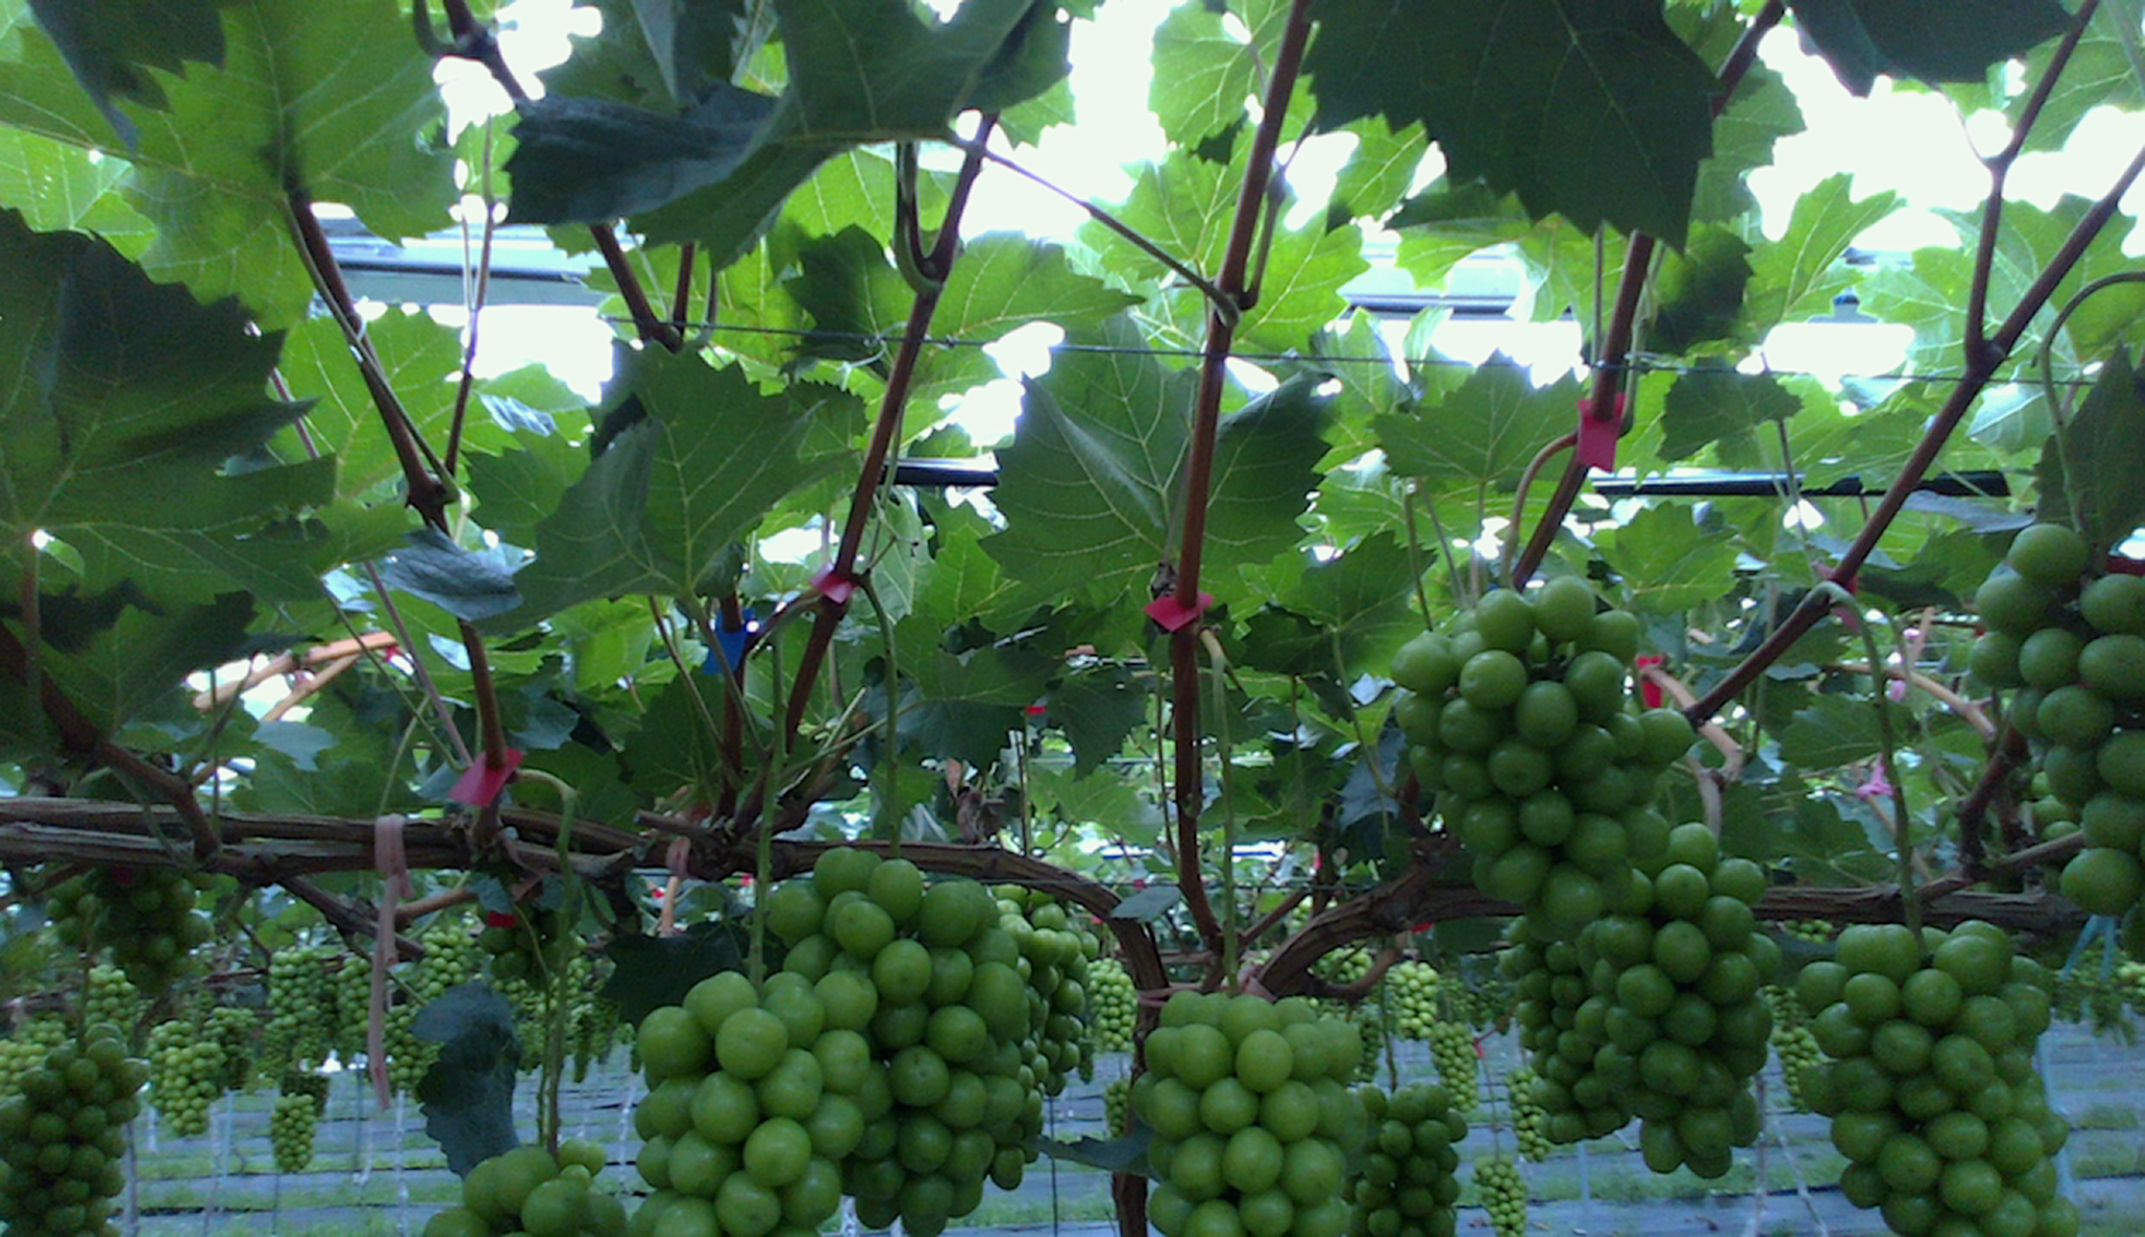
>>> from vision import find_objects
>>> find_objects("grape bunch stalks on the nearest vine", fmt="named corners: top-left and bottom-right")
top-left (2038, 270), bottom-right (2143, 534)
top-left (509, 768), bottom-right (576, 1161)
top-left (1499, 430), bottom-right (1578, 588)
top-left (852, 572), bottom-right (901, 859)
top-left (1200, 629), bottom-right (1241, 998)
top-left (1660, 771), bottom-right (1681, 826)
top-left (749, 598), bottom-right (818, 998)
top-left (1818, 577), bottom-right (1935, 969)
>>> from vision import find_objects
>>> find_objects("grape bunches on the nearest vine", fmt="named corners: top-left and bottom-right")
top-left (1131, 990), bottom-right (1370, 1235)
top-left (1574, 821), bottom-right (1781, 1179)
top-left (631, 969), bottom-right (878, 1235)
top-left (1387, 576), bottom-right (1693, 943)
top-left (767, 845), bottom-right (1028, 1235)
top-left (1793, 919), bottom-right (2080, 1235)
top-left (419, 1137), bottom-right (632, 1235)
top-left (1968, 524), bottom-right (2143, 967)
